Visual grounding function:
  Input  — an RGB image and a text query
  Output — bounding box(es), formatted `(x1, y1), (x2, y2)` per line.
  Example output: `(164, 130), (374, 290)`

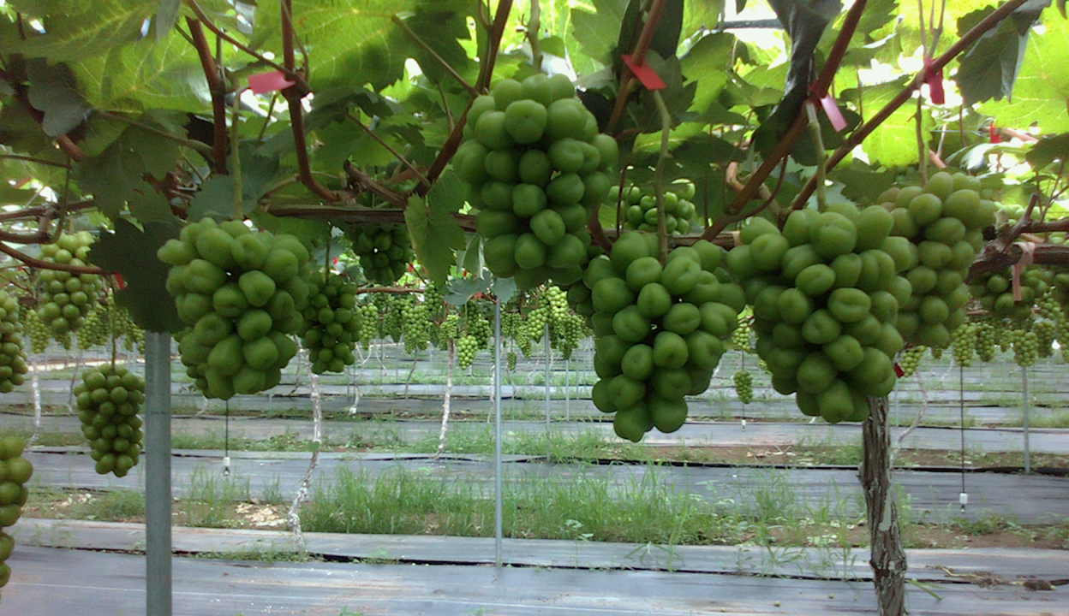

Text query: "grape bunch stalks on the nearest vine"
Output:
(232, 86), (250, 220)
(651, 90), (672, 262)
(529, 0), (541, 75)
(806, 105), (827, 213)
(916, 97), (928, 184)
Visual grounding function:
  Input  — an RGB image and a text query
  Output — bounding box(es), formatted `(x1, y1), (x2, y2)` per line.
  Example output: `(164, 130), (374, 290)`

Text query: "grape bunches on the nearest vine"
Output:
(451, 74), (618, 289)
(159, 219), (308, 400)
(583, 231), (747, 442)
(0, 437), (33, 587)
(877, 172), (994, 346)
(726, 202), (911, 422)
